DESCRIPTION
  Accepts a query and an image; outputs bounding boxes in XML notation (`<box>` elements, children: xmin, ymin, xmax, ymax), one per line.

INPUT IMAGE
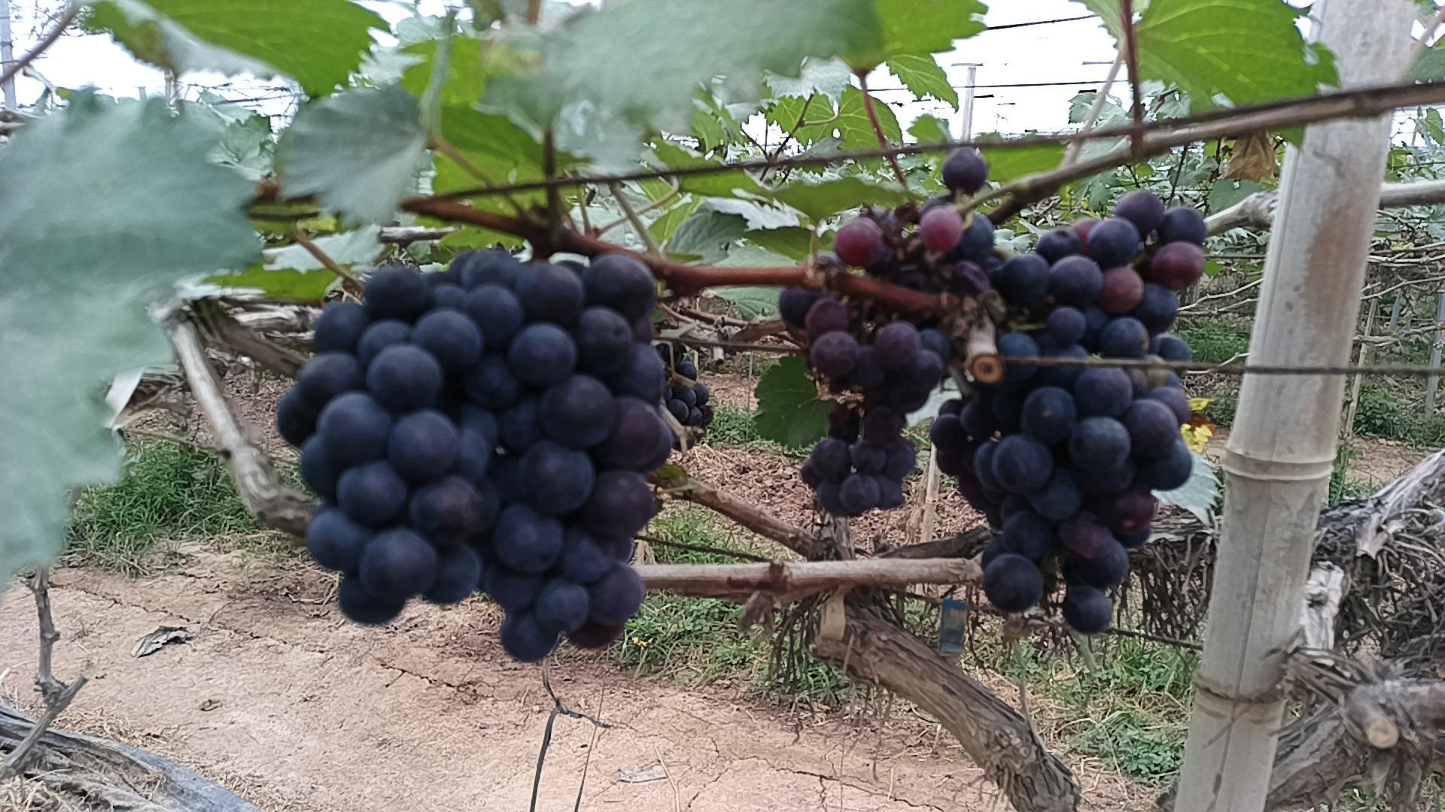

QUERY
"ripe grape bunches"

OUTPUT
<box><xmin>779</xmin><ymin>146</ymin><xmax>997</xmax><ymax>520</ymax></box>
<box><xmin>929</xmin><ymin>191</ymin><xmax>1207</xmax><ymax>635</ymax></box>
<box><xmin>656</xmin><ymin>341</ymin><xmax>716</xmax><ymax>452</ymax></box>
<box><xmin>278</xmin><ymin>250</ymin><xmax>672</xmax><ymax>661</ymax></box>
